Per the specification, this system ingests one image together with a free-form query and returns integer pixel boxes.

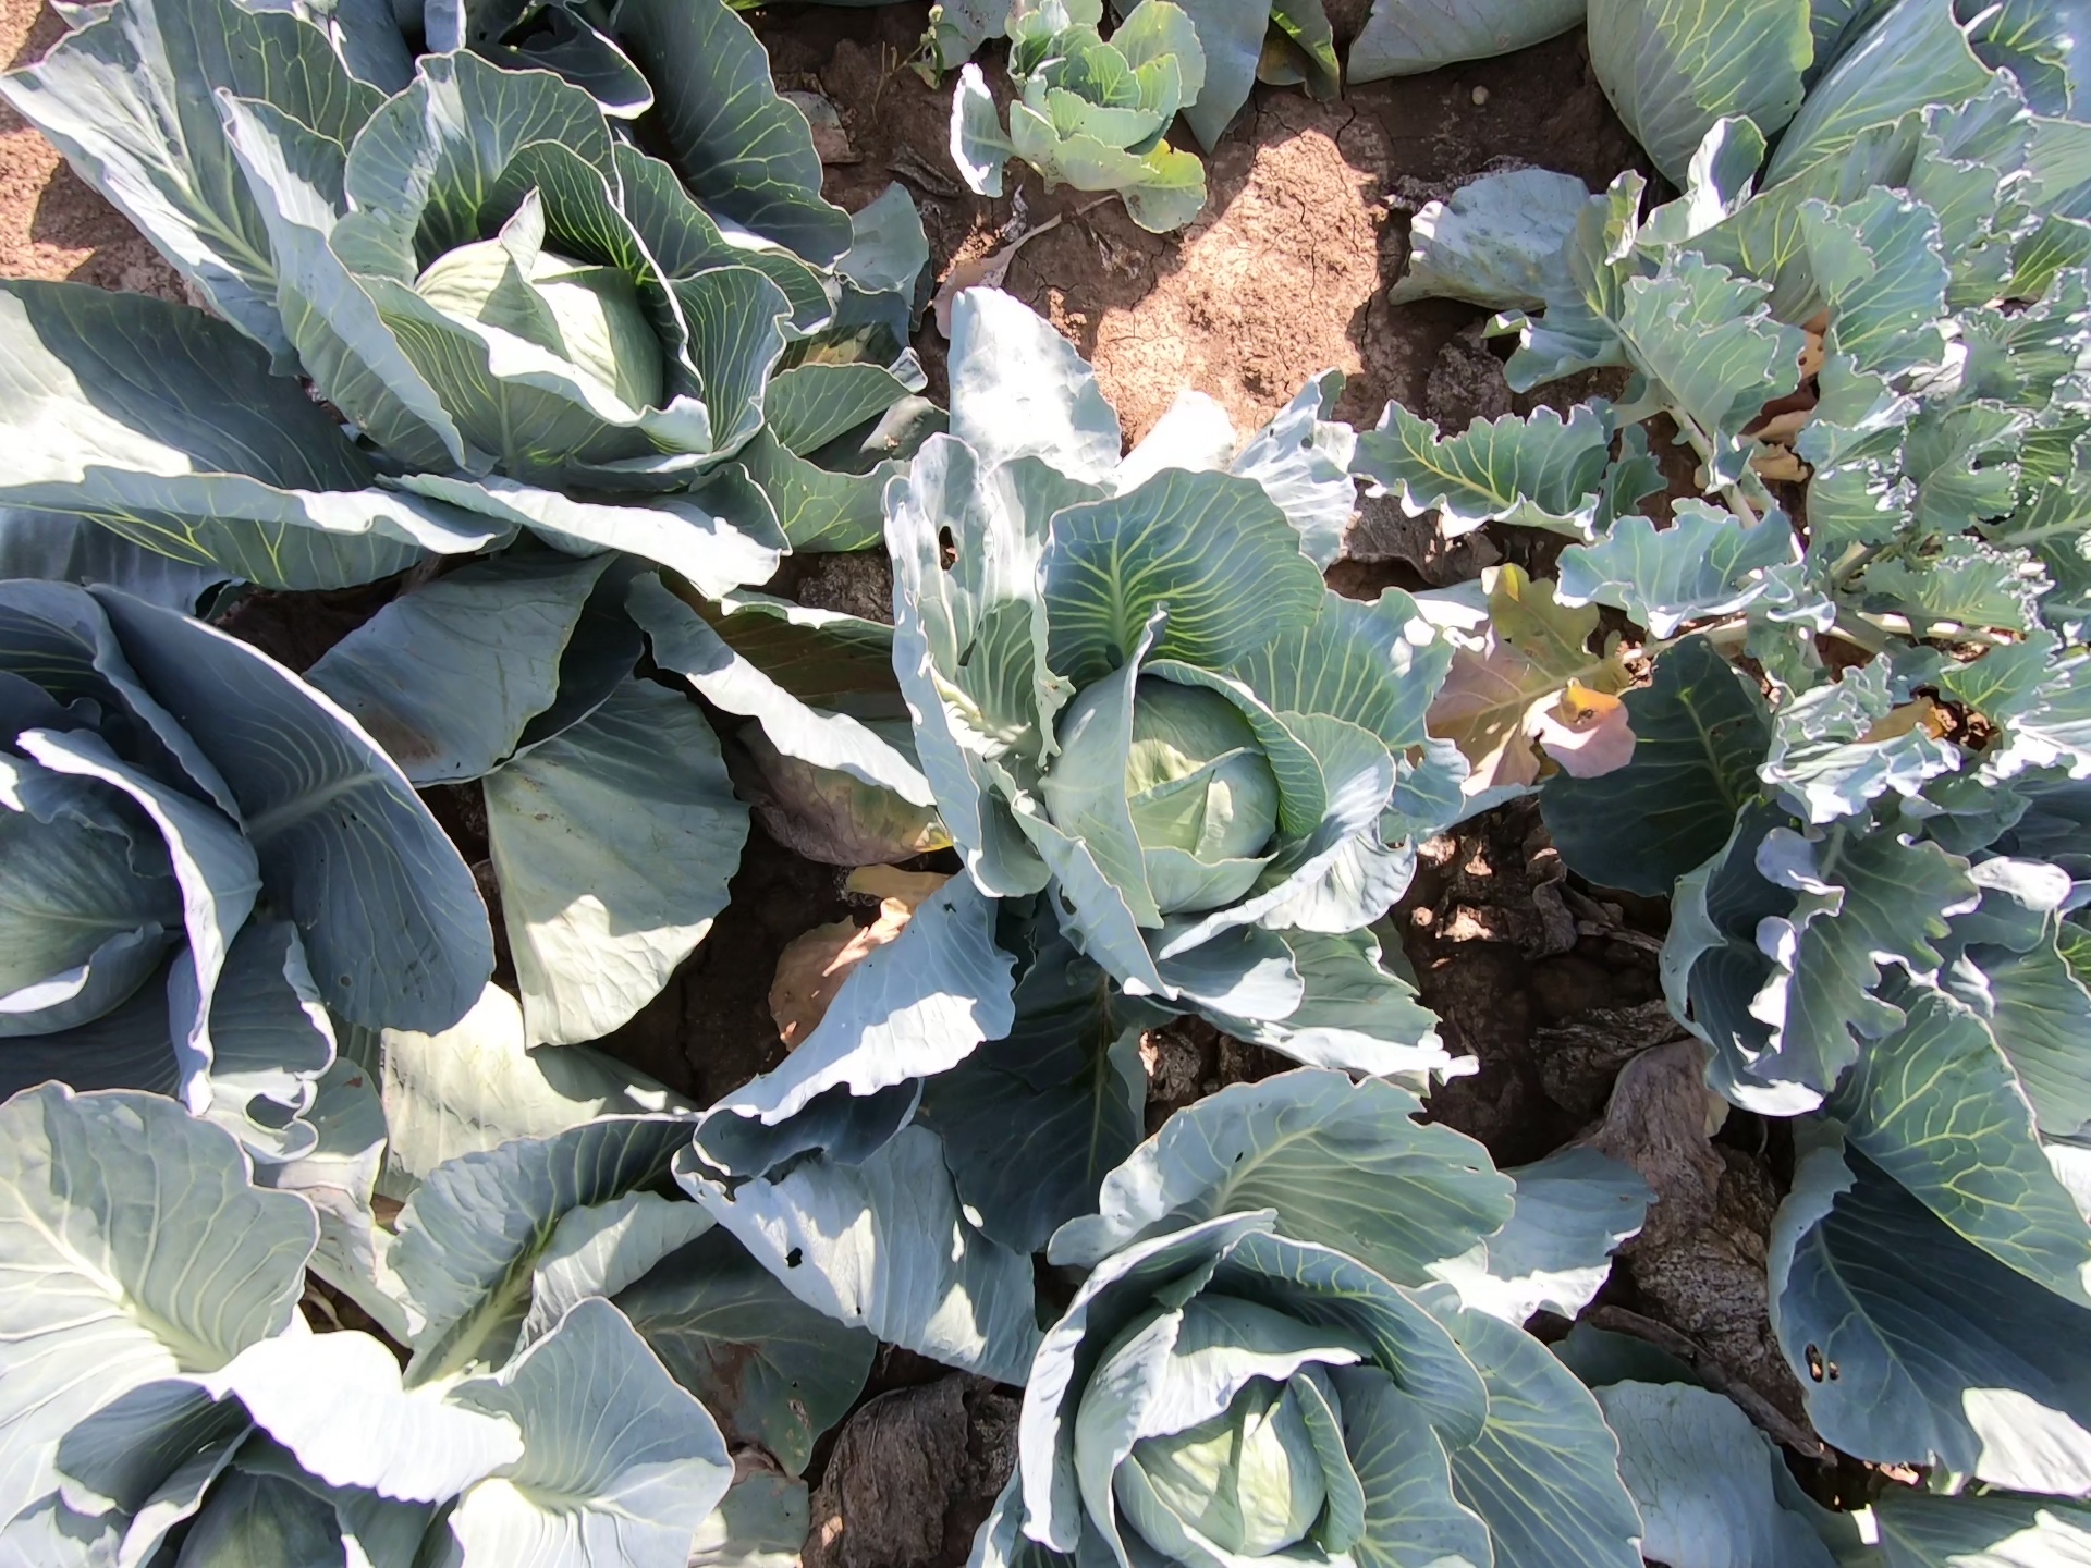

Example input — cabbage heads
[1060,677,1277,905]
[1112,1306,1343,1566]
[168,1434,406,1565]
[406,236,660,451]
[3,774,174,1039]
